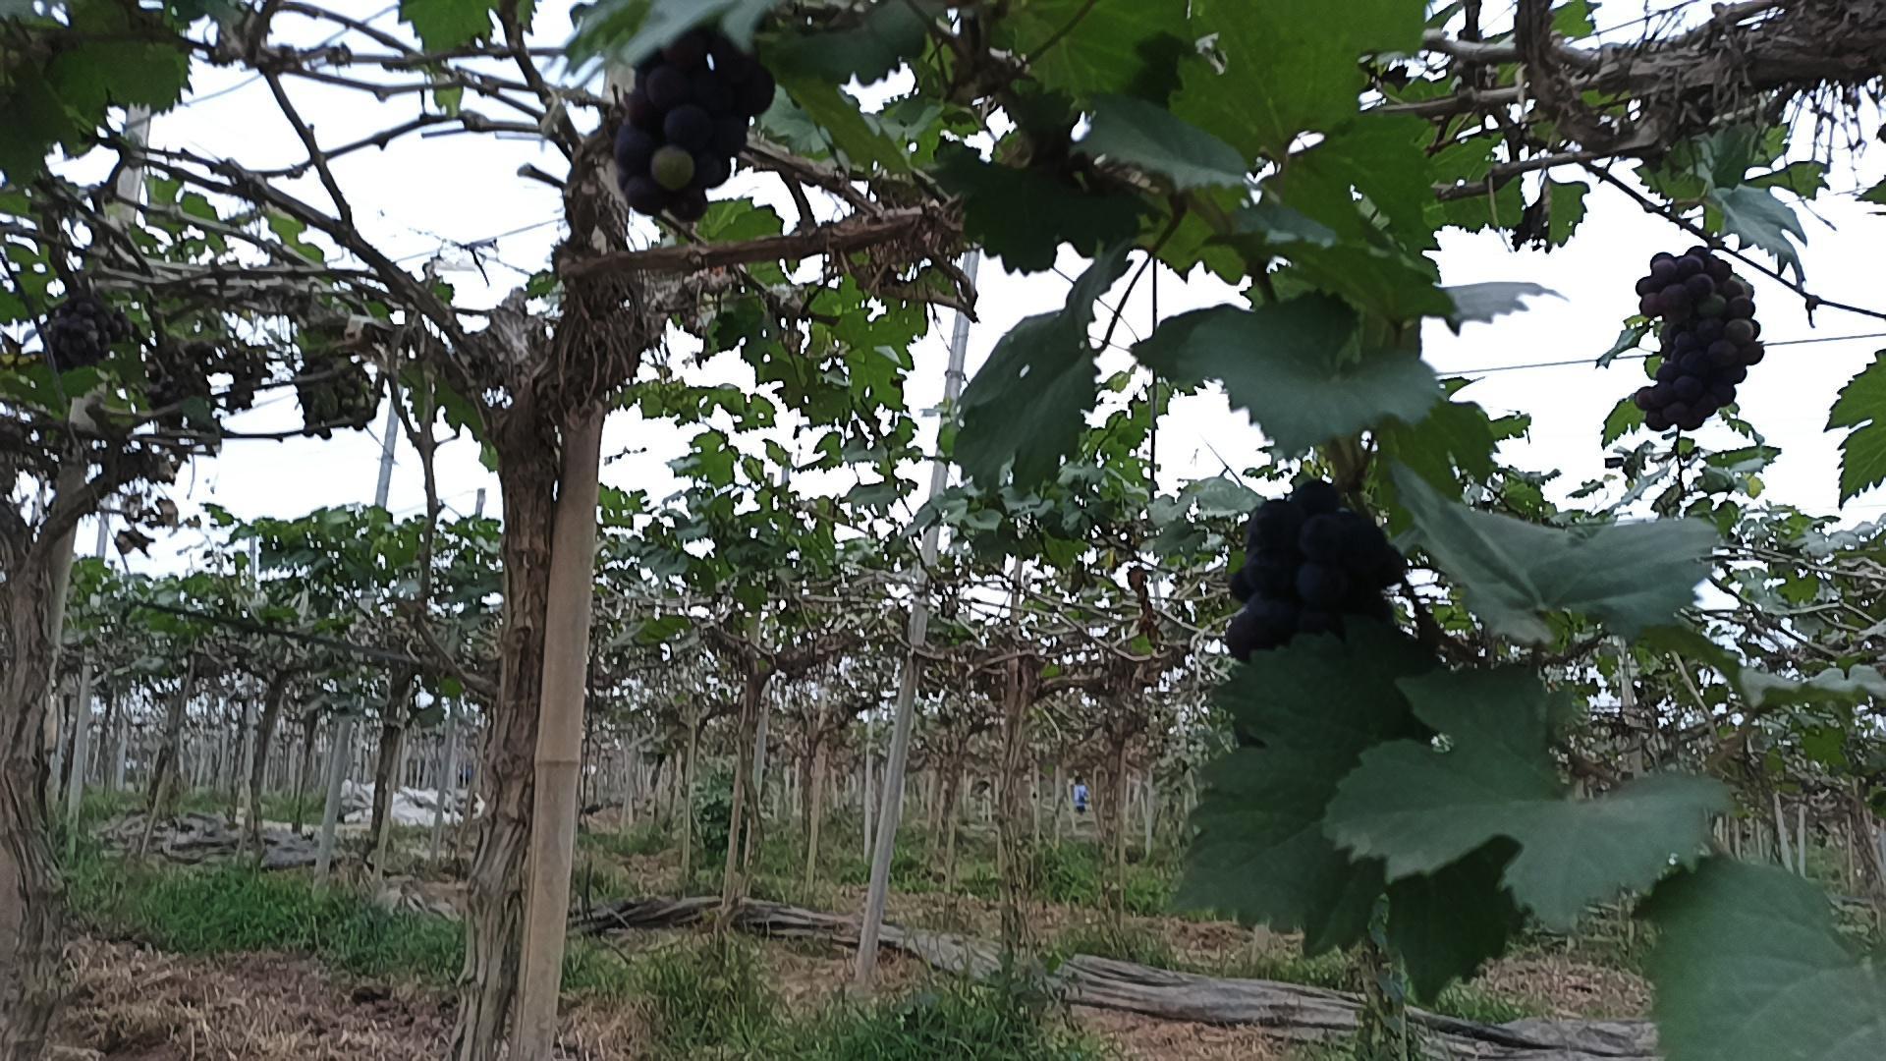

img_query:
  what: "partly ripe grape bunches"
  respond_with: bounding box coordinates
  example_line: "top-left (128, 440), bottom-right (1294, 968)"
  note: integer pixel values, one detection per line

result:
top-left (39, 291), bottom-right (134, 374)
top-left (614, 31), bottom-right (774, 222)
top-left (297, 356), bottom-right (381, 438)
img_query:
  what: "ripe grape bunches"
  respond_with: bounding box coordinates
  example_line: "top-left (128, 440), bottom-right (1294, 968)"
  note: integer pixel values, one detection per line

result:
top-left (1631, 247), bottom-right (1763, 431)
top-left (1215, 480), bottom-right (1425, 747)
